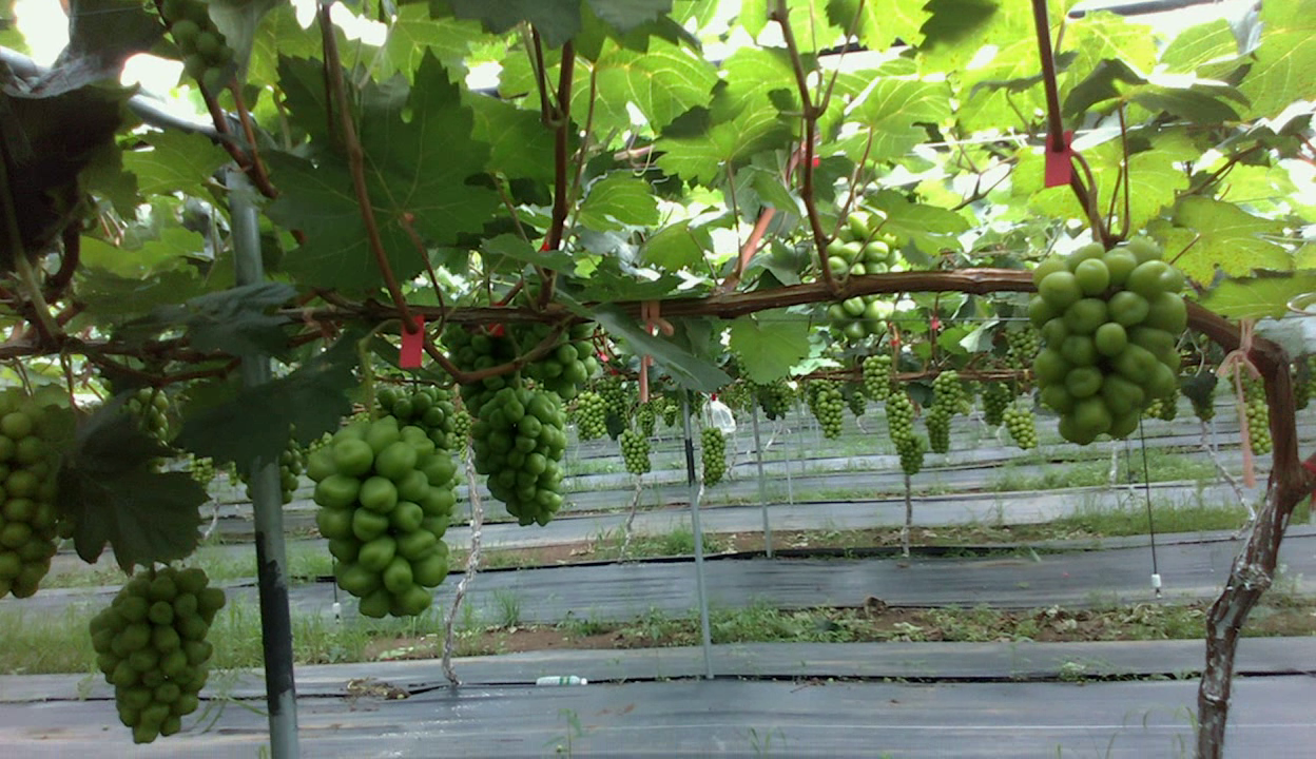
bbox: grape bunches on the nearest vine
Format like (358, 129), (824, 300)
(305, 415), (457, 620)
(1026, 234), (1187, 445)
(89, 567), (226, 745)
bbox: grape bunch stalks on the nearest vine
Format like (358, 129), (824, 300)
(1071, 150), (1100, 241)
(355, 318), (403, 423)
(150, 563), (157, 580)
